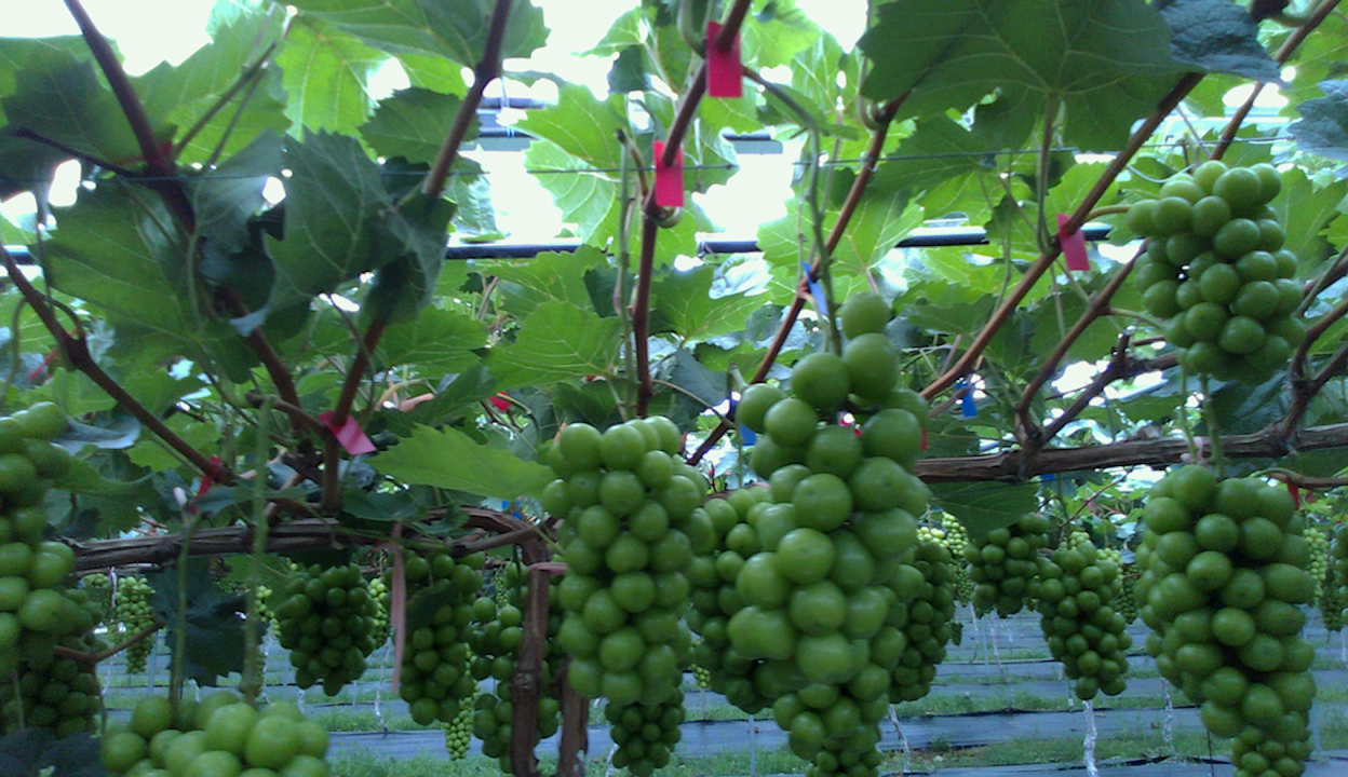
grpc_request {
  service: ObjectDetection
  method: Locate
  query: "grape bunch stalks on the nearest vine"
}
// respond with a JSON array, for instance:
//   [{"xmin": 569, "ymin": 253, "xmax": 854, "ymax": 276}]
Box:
[
  {"xmin": 1197, "ymin": 374, "xmax": 1228, "ymax": 482},
  {"xmin": 167, "ymin": 510, "xmax": 203, "ymax": 730},
  {"xmin": 1, "ymin": 297, "xmax": 26, "ymax": 413},
  {"xmin": 617, "ymin": 128, "xmax": 647, "ymax": 420},
  {"xmin": 237, "ymin": 395, "xmax": 325, "ymax": 713},
  {"xmin": 744, "ymin": 66, "xmax": 844, "ymax": 355}
]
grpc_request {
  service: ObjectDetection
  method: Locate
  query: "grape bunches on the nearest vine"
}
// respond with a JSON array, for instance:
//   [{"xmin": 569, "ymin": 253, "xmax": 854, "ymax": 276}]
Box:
[
  {"xmin": 1124, "ymin": 159, "xmax": 1308, "ymax": 388},
  {"xmin": 539, "ymin": 415, "xmax": 716, "ymax": 707},
  {"xmin": 727, "ymin": 290, "xmax": 933, "ymax": 754},
  {"xmin": 0, "ymin": 400, "xmax": 105, "ymax": 678},
  {"xmin": 99, "ymin": 694, "xmax": 200, "ymax": 775},
  {"xmin": 1130, "ymin": 466, "xmax": 1318, "ymax": 747},
  {"xmin": 164, "ymin": 690, "xmax": 333, "ymax": 776}
]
